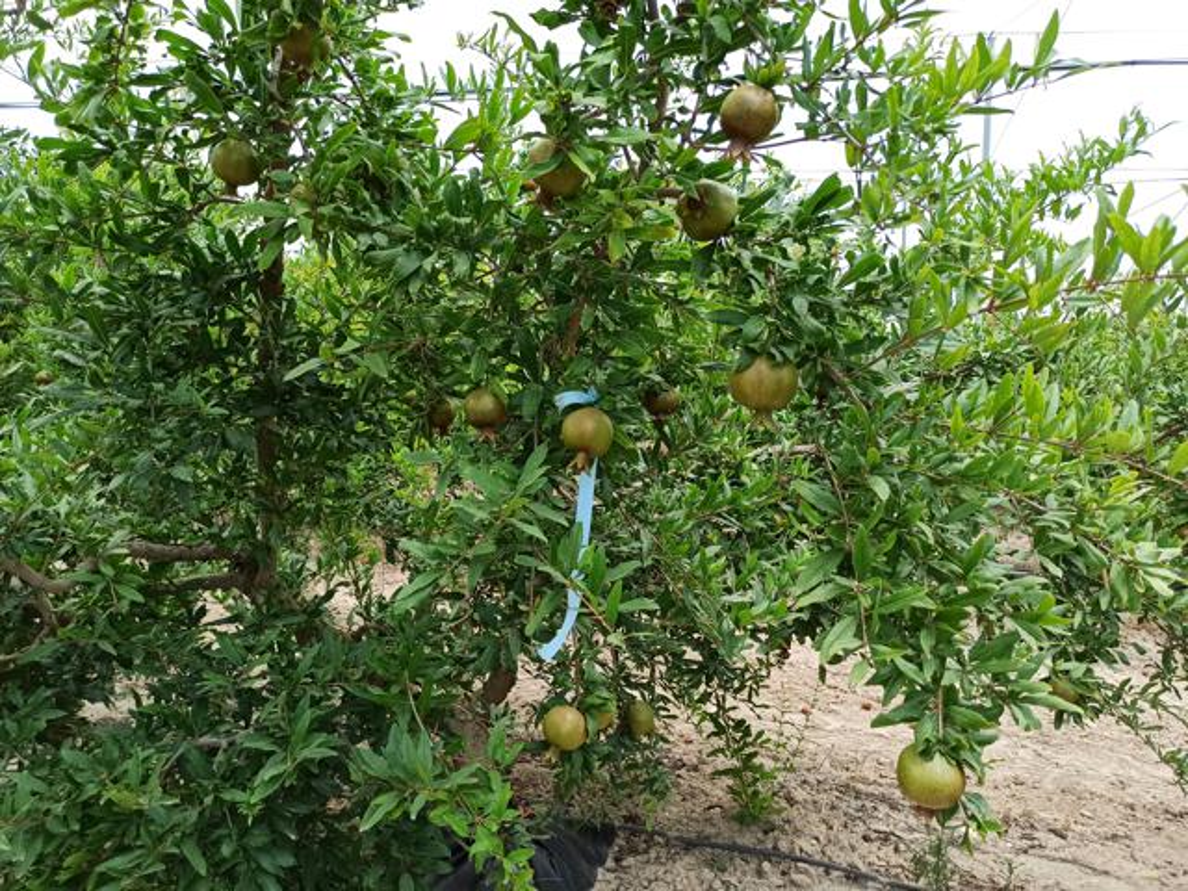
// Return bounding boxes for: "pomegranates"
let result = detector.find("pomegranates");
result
[728,353,798,433]
[598,713,613,730]
[627,700,653,739]
[561,405,616,475]
[429,401,453,434]
[644,388,679,423]
[676,178,739,241]
[897,741,967,819]
[540,704,588,767]
[520,139,587,212]
[718,82,780,161]
[280,28,332,65]
[210,139,258,197]
[1049,679,1080,704]
[462,386,507,447]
